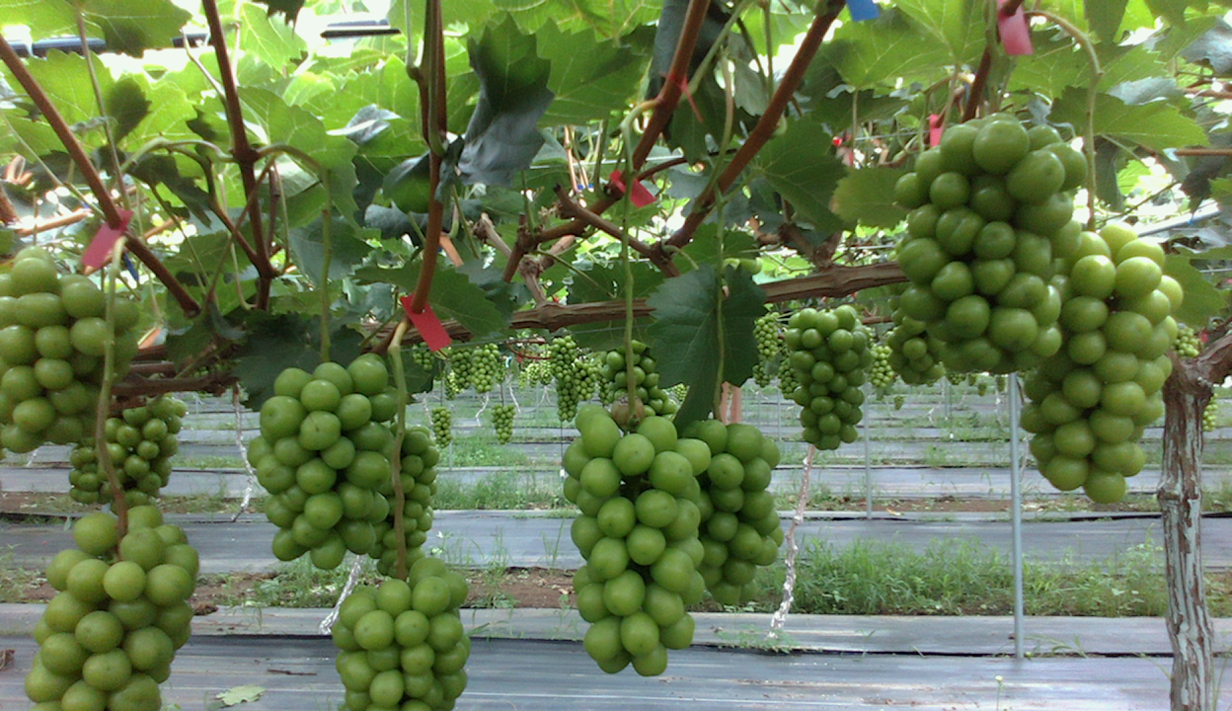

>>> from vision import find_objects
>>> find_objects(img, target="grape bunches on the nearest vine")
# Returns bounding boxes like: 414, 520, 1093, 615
0, 245, 137, 454
332, 556, 472, 710
25, 505, 197, 710
247, 354, 400, 571
1019, 221, 1184, 505
562, 393, 711, 677
681, 419, 784, 606
894, 113, 1087, 376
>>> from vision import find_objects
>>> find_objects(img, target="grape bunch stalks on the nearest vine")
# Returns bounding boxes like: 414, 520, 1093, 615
621, 100, 660, 434
258, 143, 330, 363
988, 1, 998, 114
96, 235, 127, 559
389, 316, 410, 581
1023, 10, 1100, 231
712, 181, 724, 421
